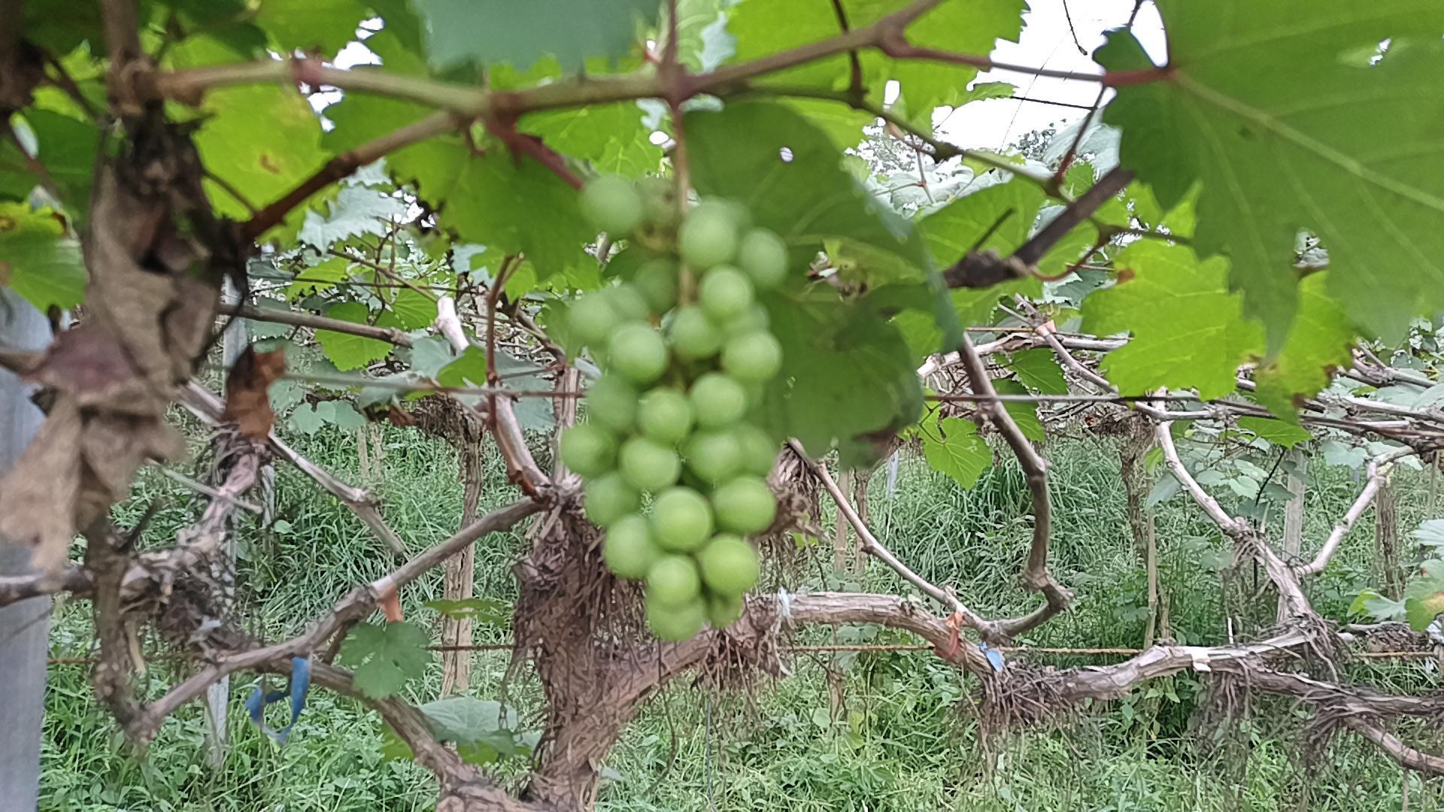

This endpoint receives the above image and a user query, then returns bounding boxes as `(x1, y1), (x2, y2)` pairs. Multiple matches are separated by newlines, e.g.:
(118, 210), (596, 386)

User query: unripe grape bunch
(560, 172), (787, 642)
